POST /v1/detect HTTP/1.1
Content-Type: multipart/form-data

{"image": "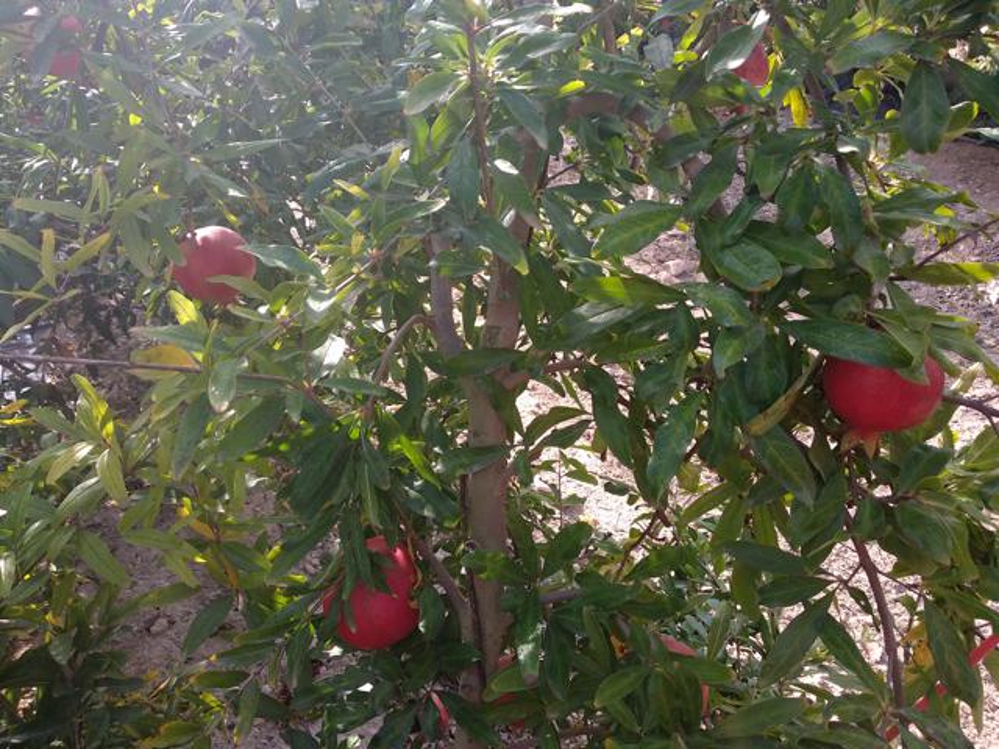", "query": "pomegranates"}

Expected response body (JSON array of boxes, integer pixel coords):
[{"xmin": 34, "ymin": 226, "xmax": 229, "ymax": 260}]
[
  {"xmin": 724, "ymin": 41, "xmax": 771, "ymax": 117},
  {"xmin": 322, "ymin": 535, "xmax": 418, "ymax": 649},
  {"xmin": 823, "ymin": 356, "xmax": 944, "ymax": 460},
  {"xmin": 50, "ymin": 16, "xmax": 84, "ymax": 76},
  {"xmin": 169, "ymin": 225, "xmax": 258, "ymax": 301}
]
